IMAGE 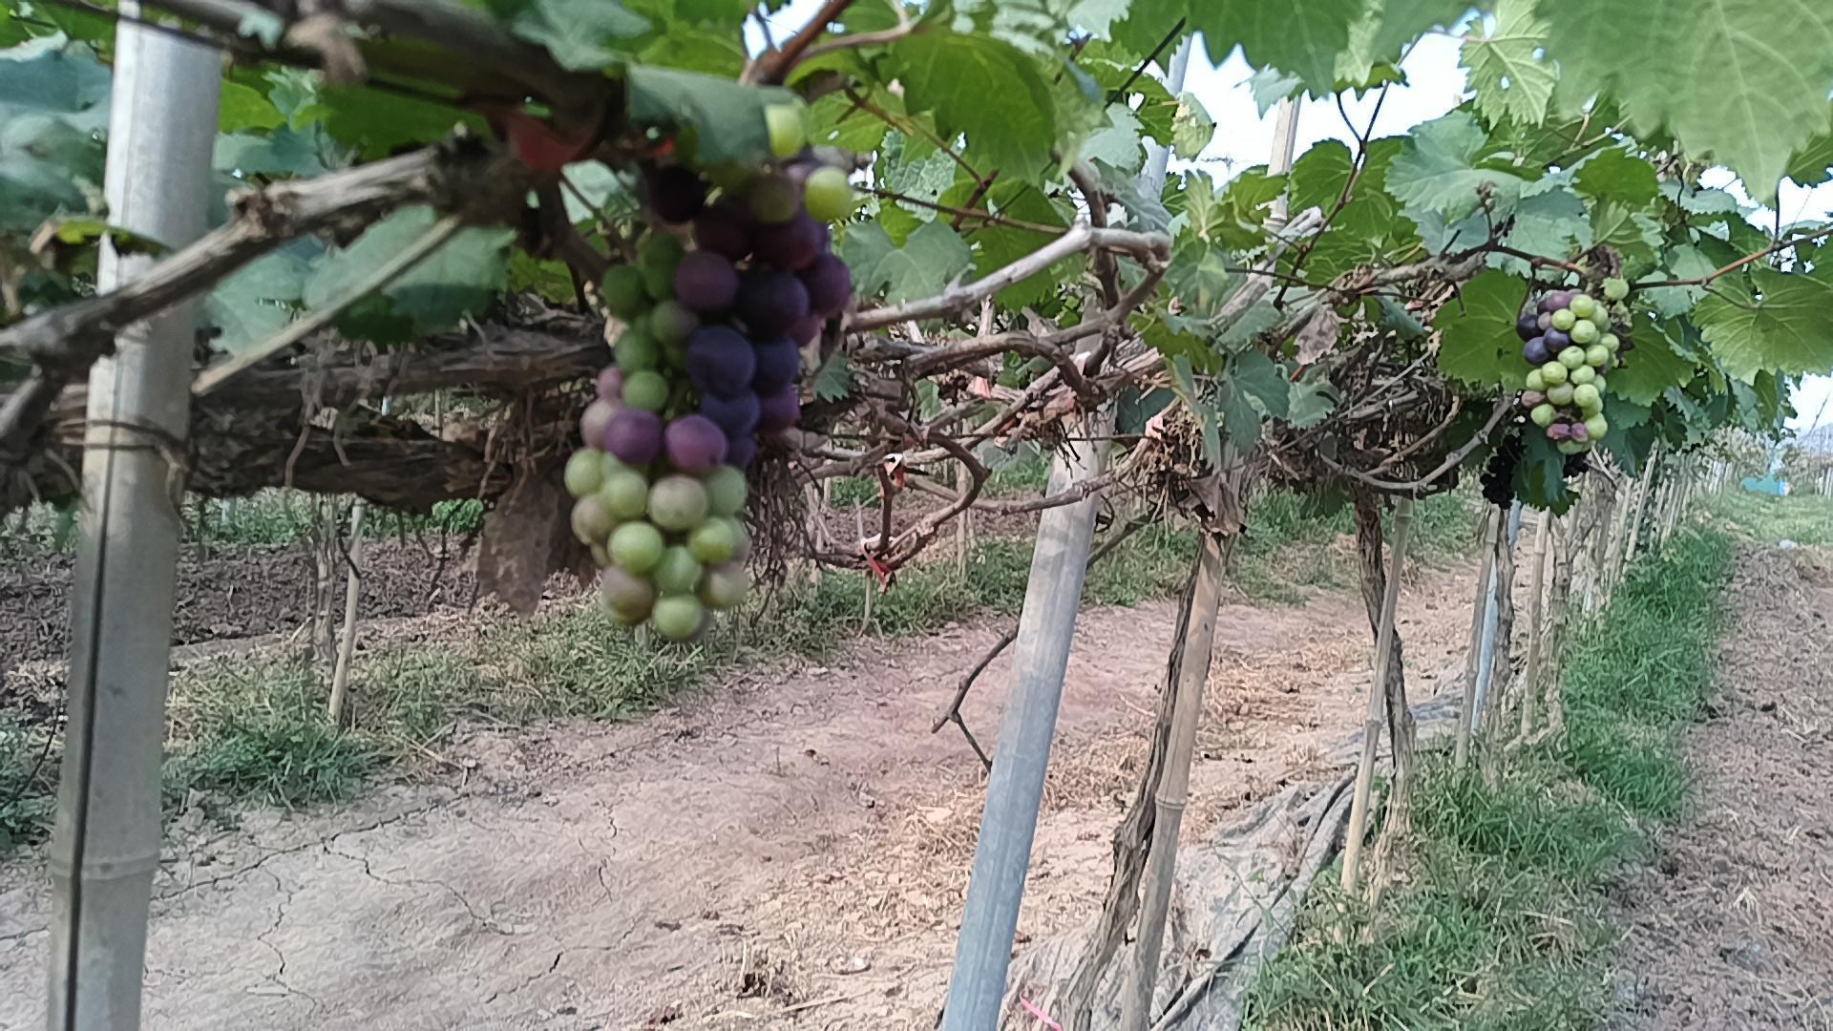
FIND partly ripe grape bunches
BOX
[566,102,858,642]
[1515,275,1629,455]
